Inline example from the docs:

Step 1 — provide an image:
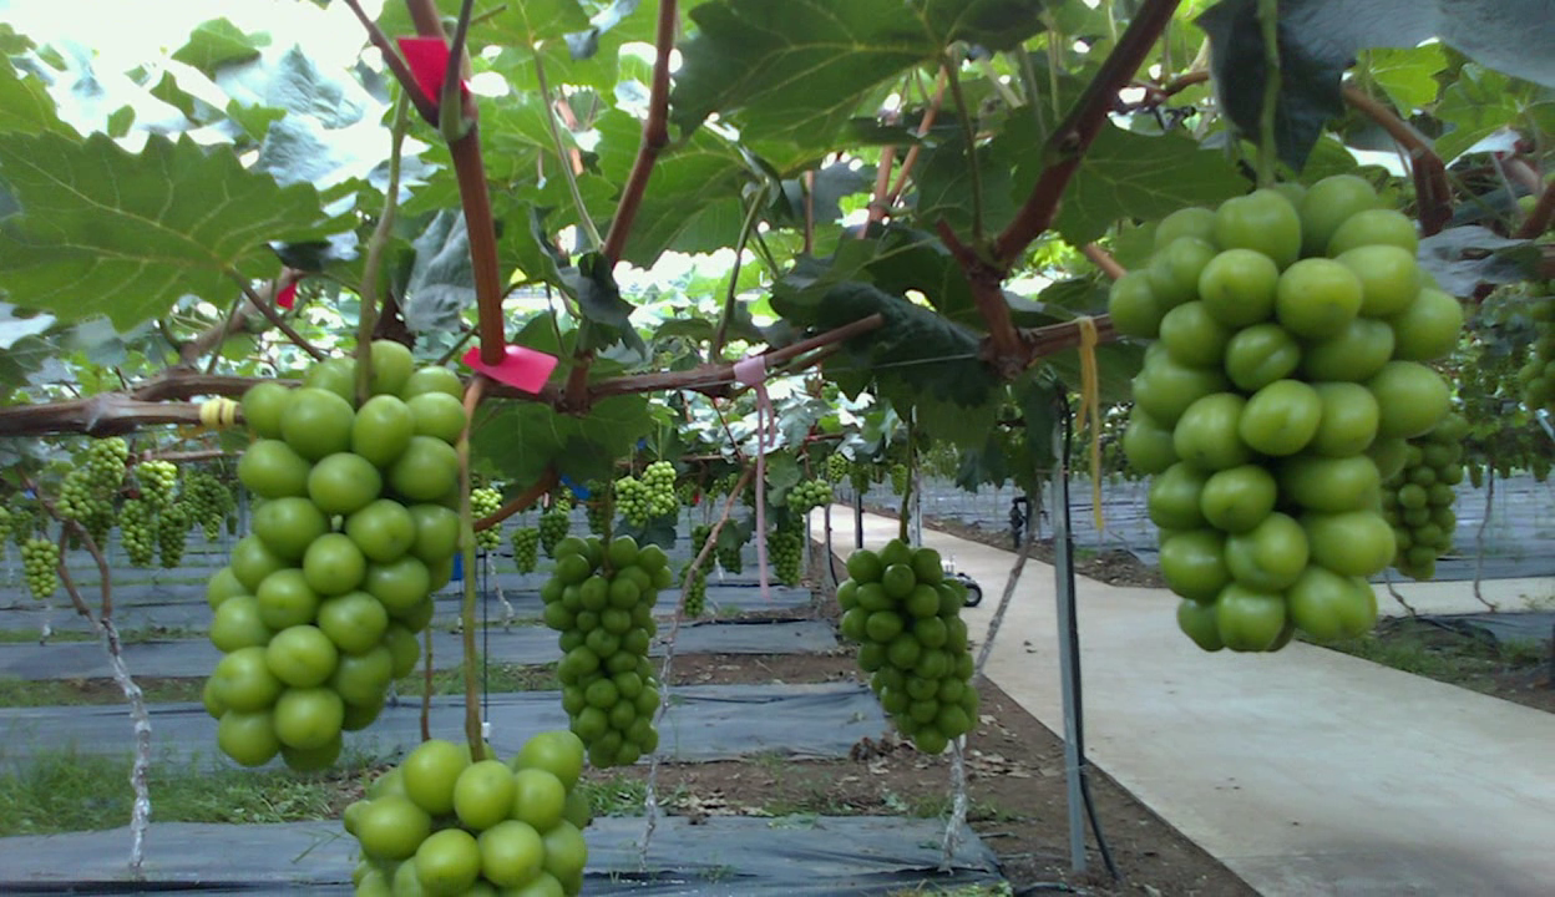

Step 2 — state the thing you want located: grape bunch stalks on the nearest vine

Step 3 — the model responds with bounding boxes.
[355,87,409,412]
[1258,0,1281,191]
[459,377,487,761]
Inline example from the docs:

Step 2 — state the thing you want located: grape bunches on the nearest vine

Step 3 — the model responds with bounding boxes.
[204,340,467,775]
[344,731,586,896]
[1106,173,1462,655]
